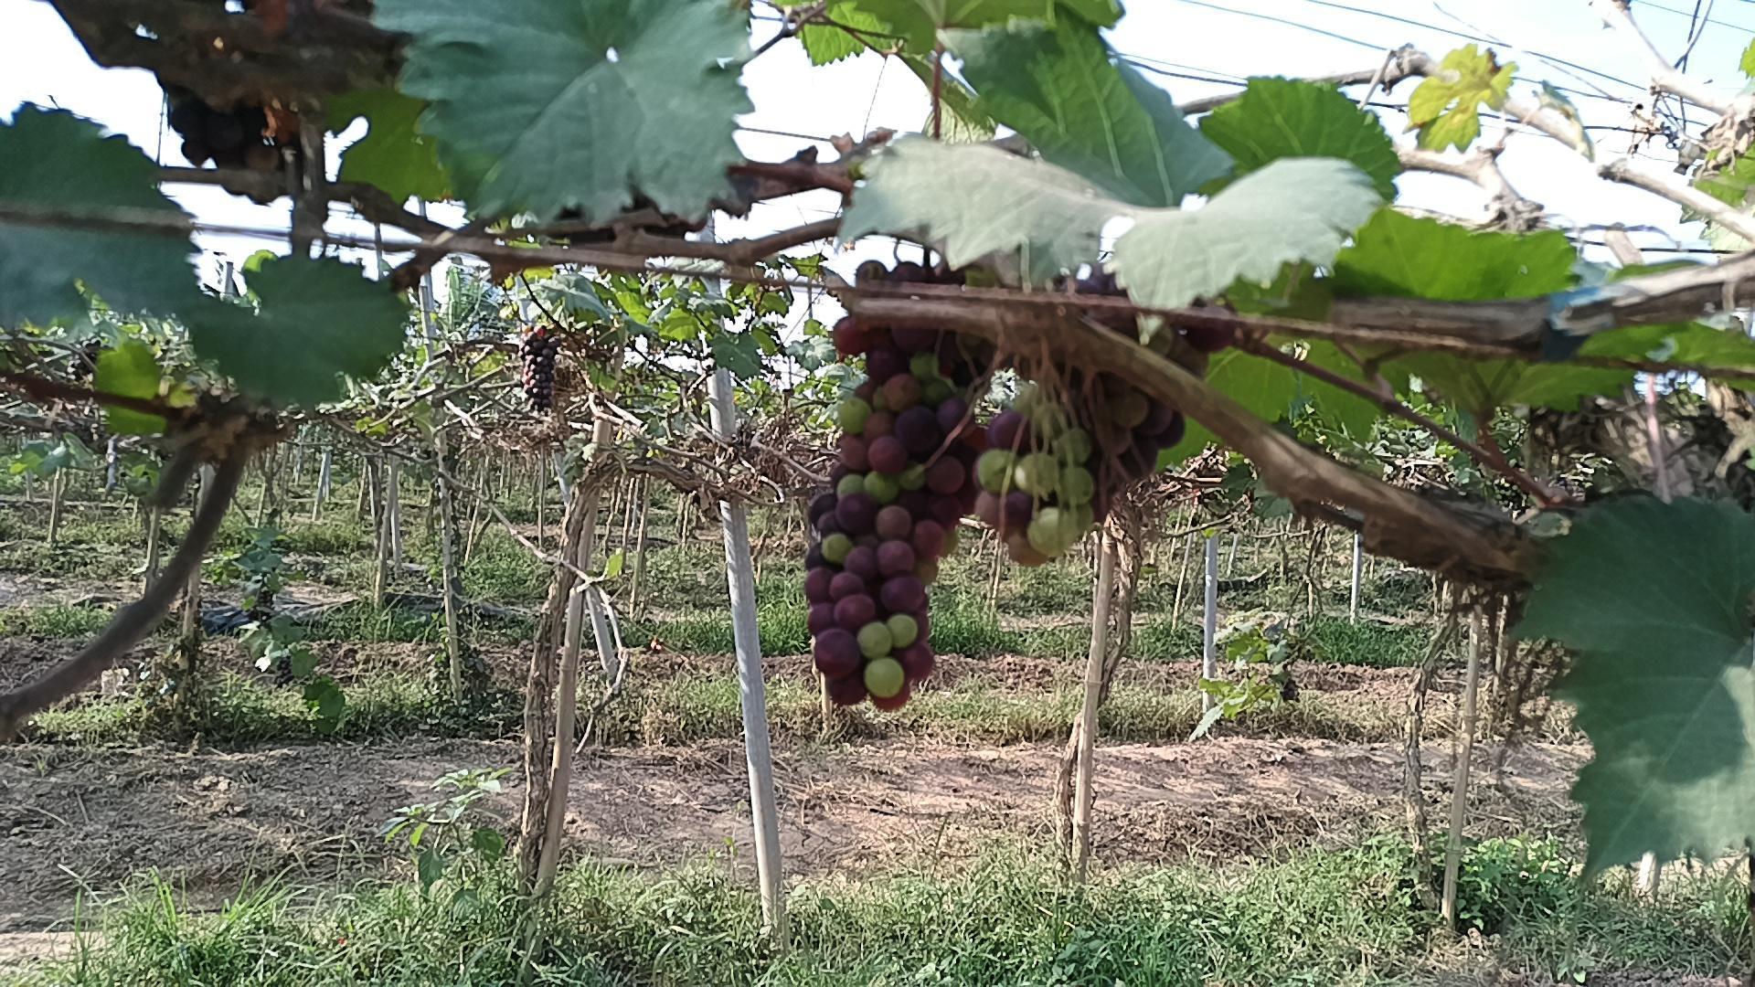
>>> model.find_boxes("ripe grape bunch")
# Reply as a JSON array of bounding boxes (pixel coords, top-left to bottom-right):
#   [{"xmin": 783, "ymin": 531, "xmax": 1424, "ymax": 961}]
[{"xmin": 519, "ymin": 325, "xmax": 559, "ymax": 417}]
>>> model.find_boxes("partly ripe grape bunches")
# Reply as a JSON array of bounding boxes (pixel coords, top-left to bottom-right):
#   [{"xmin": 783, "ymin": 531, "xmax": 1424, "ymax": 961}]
[
  {"xmin": 804, "ymin": 260, "xmax": 994, "ymax": 710},
  {"xmin": 148, "ymin": 69, "xmax": 286, "ymax": 207},
  {"xmin": 974, "ymin": 265, "xmax": 1235, "ymax": 565}
]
